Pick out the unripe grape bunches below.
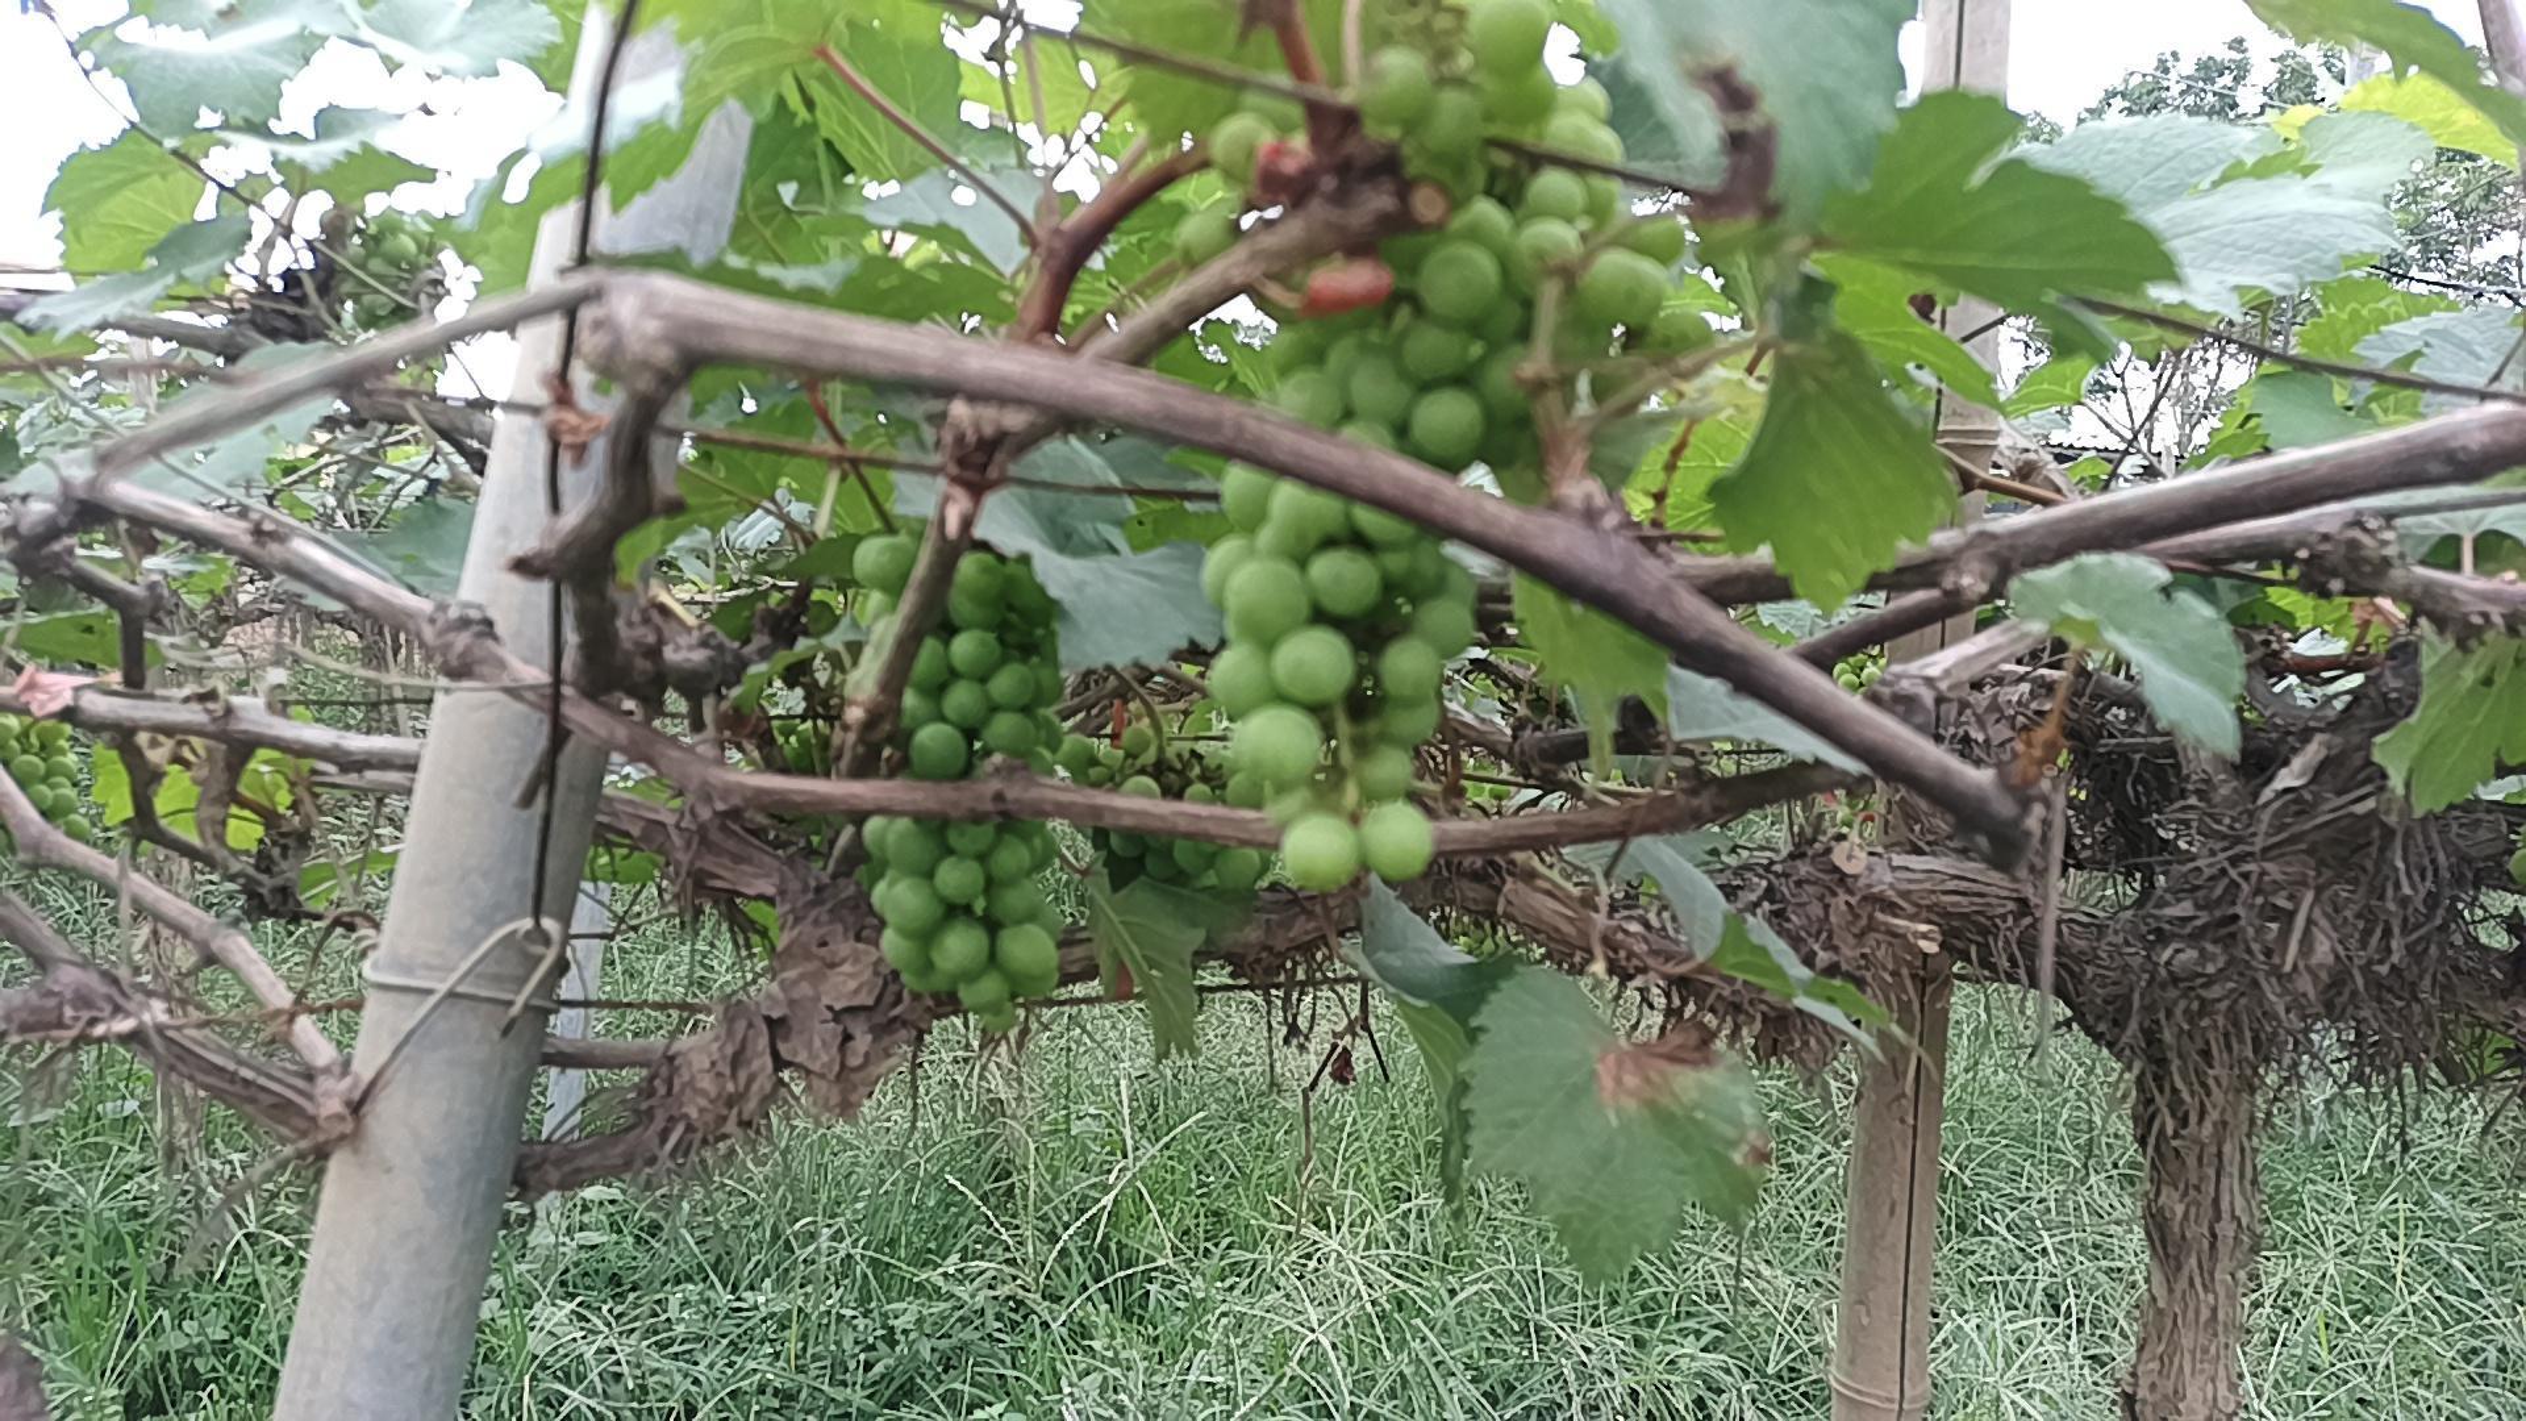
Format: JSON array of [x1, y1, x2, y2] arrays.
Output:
[[1833, 646, 1885, 693], [1179, 0, 1712, 889], [341, 208, 449, 328], [1059, 725, 1277, 891], [834, 504, 1062, 1030]]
